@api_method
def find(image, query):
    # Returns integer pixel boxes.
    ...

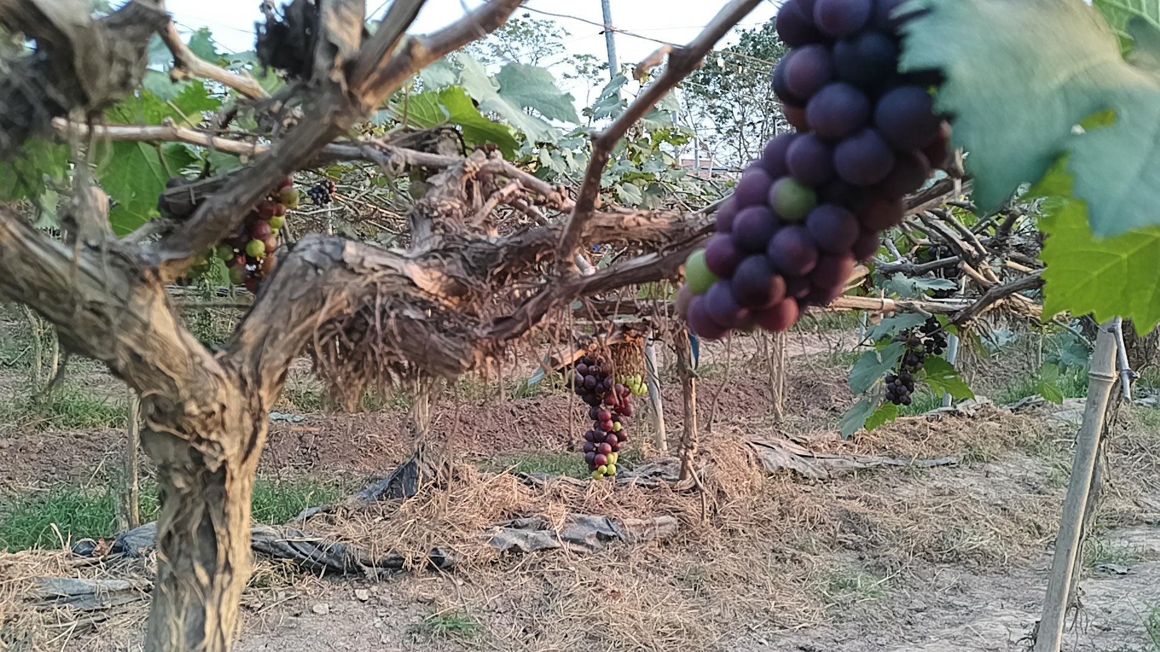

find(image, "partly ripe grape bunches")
[885,316,946,405]
[677,0,949,337]
[158,176,297,292]
[575,354,646,479]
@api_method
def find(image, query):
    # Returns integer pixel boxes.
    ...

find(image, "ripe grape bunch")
[306,179,335,203]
